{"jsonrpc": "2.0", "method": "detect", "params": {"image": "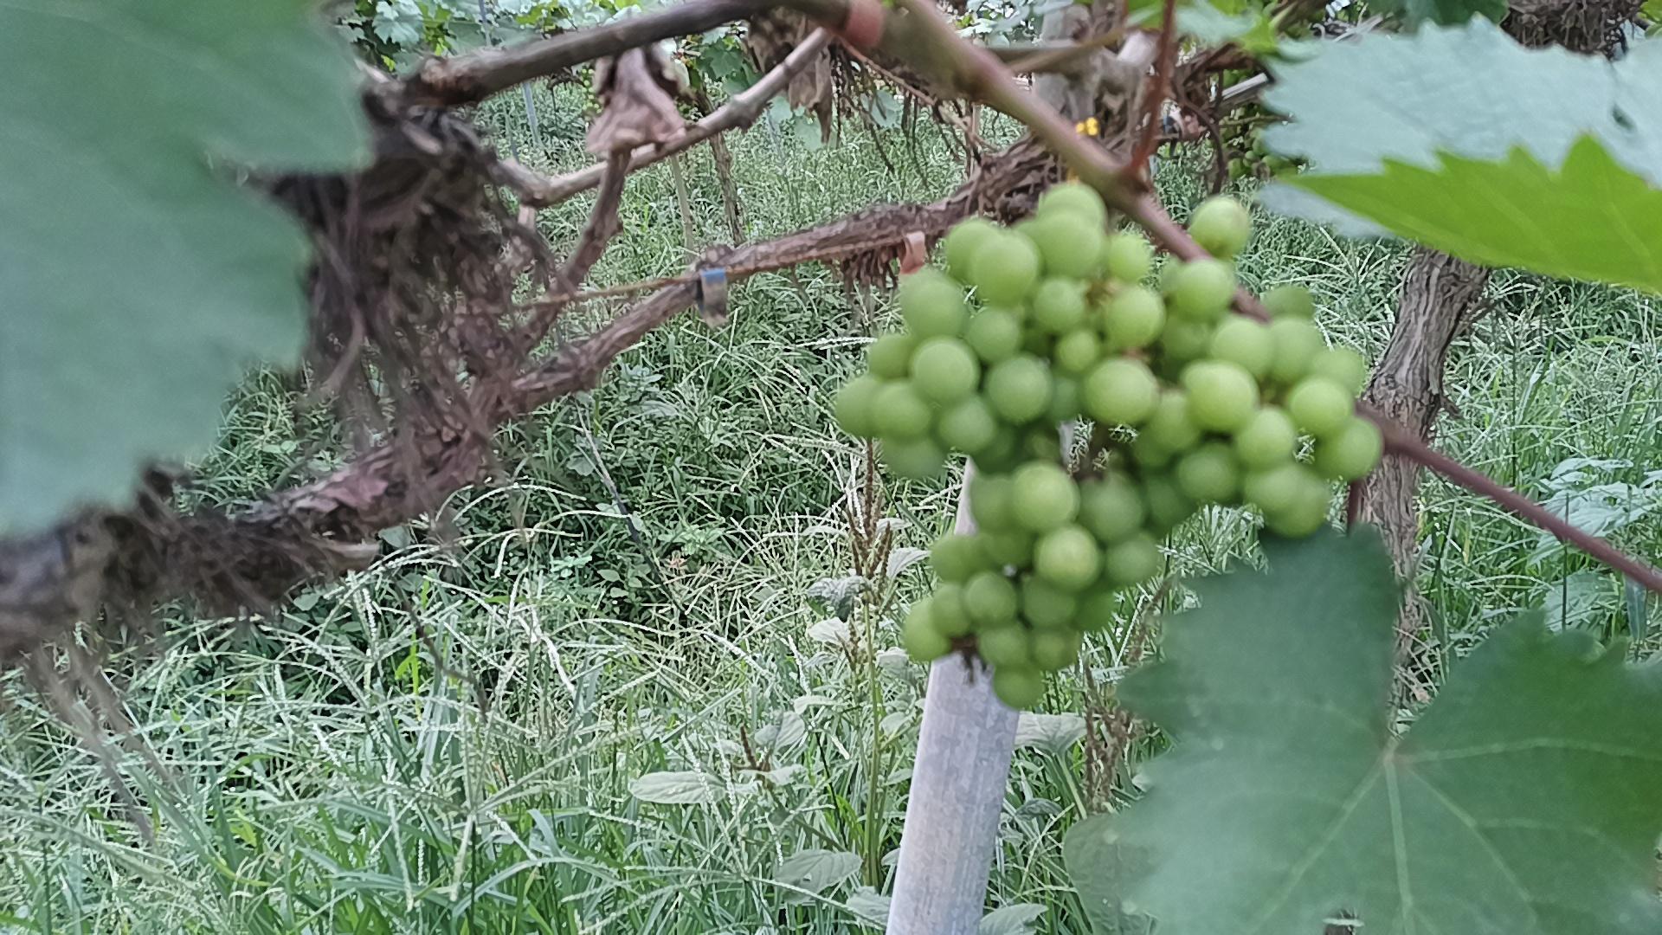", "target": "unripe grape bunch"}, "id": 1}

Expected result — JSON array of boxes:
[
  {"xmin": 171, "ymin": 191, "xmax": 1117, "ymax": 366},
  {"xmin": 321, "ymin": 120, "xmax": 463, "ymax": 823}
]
[{"xmin": 834, "ymin": 182, "xmax": 1384, "ymax": 706}]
